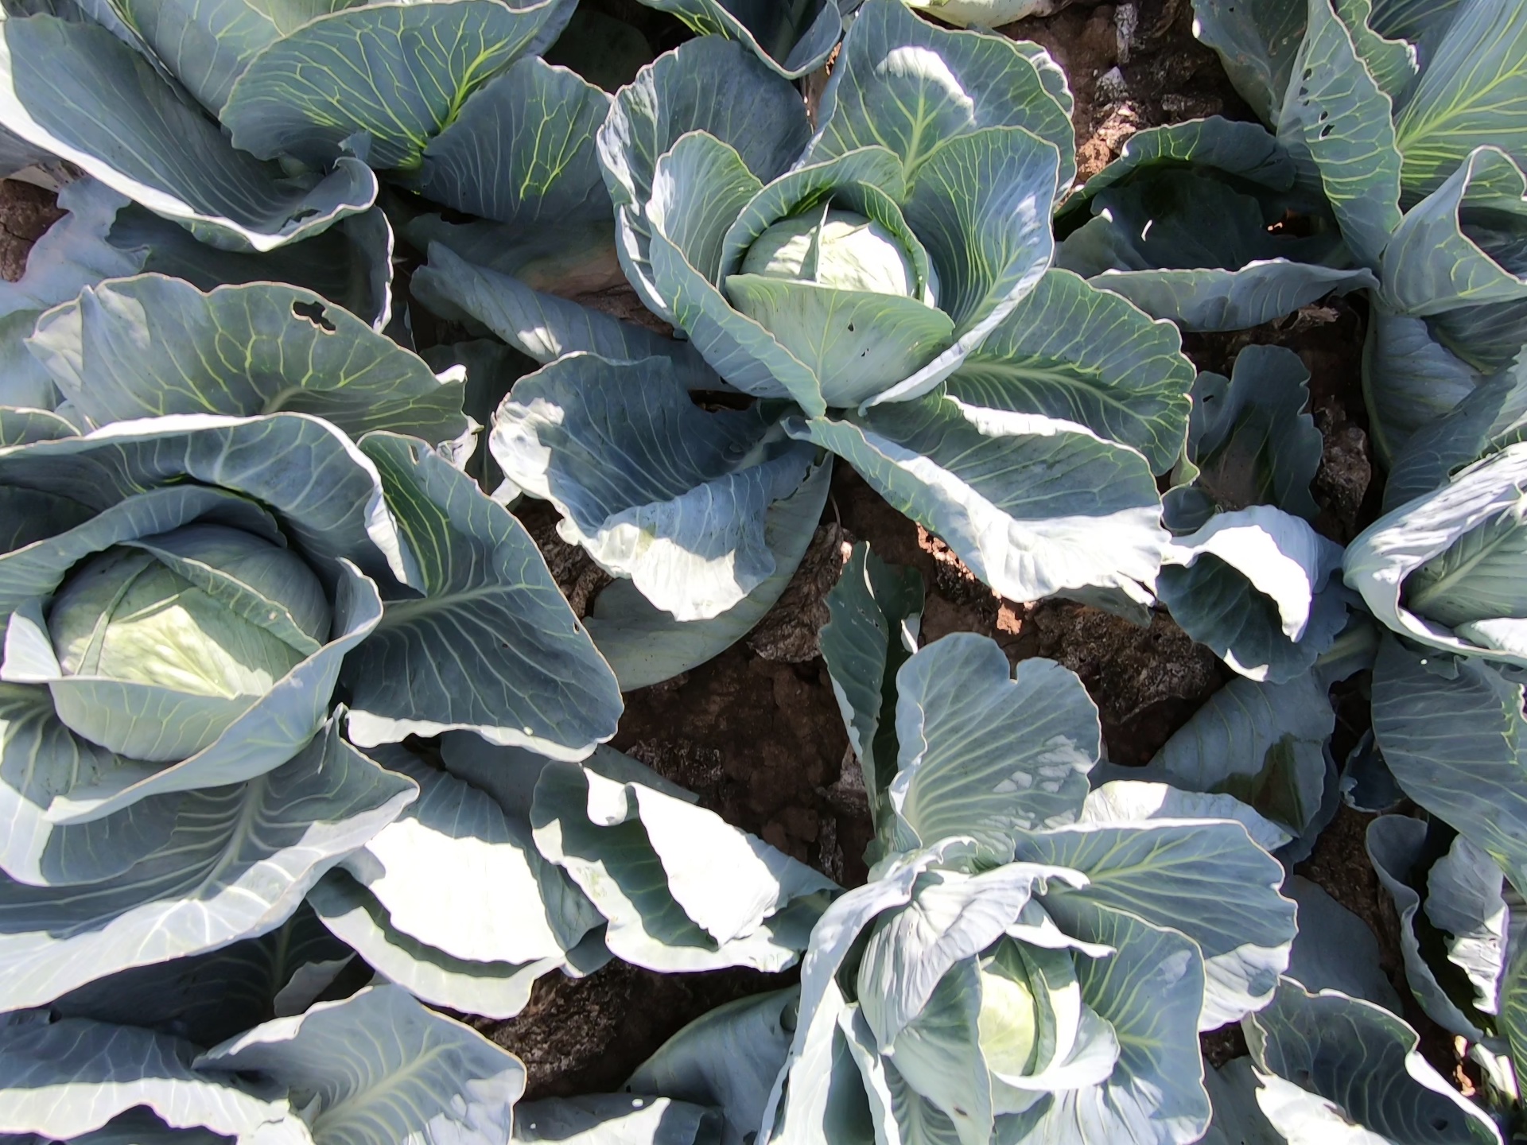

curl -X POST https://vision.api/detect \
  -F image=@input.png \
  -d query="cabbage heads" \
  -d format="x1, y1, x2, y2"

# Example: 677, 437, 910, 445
48, 519, 328, 755
872, 875, 1081, 1112
739, 203, 932, 386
